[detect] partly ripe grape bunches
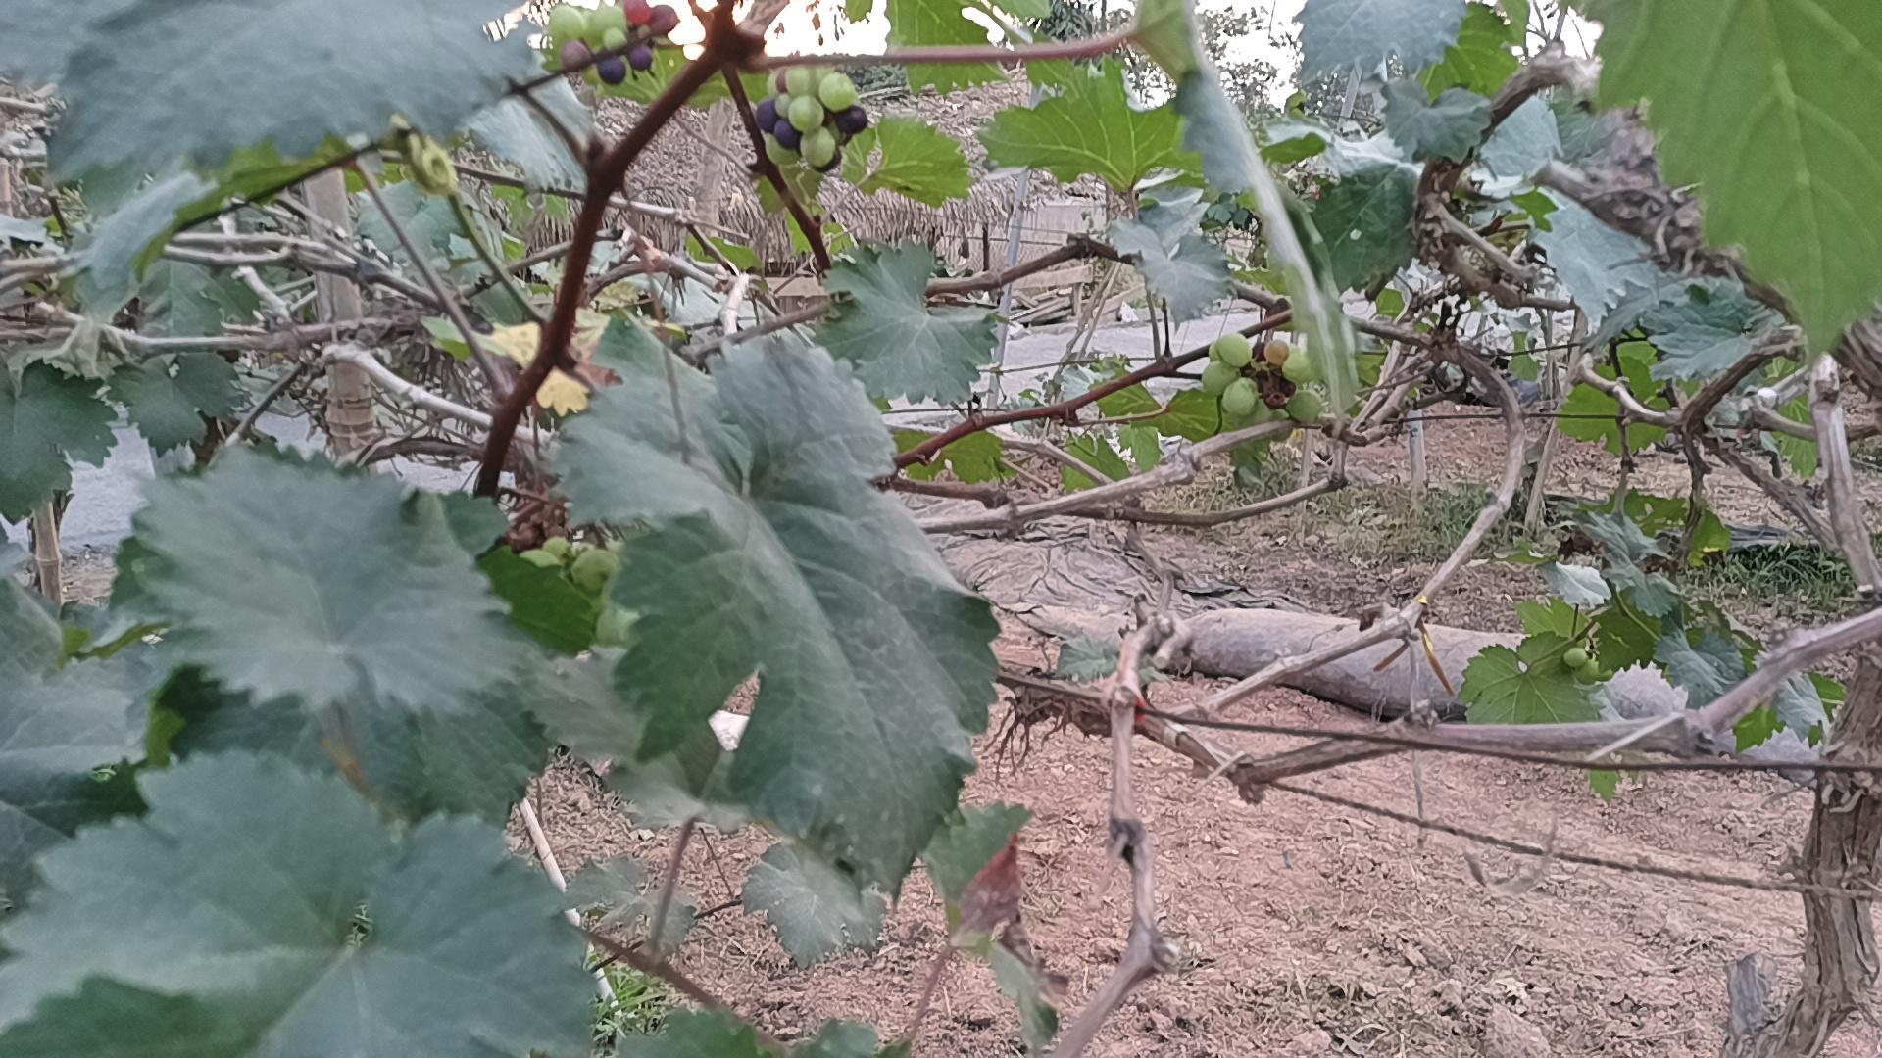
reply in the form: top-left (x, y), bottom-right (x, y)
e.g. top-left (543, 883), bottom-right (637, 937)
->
top-left (548, 0), bottom-right (679, 87)
top-left (754, 67), bottom-right (867, 173)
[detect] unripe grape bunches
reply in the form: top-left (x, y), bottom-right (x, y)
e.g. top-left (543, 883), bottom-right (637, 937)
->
top-left (1201, 334), bottom-right (1324, 422)
top-left (517, 537), bottom-right (637, 646)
